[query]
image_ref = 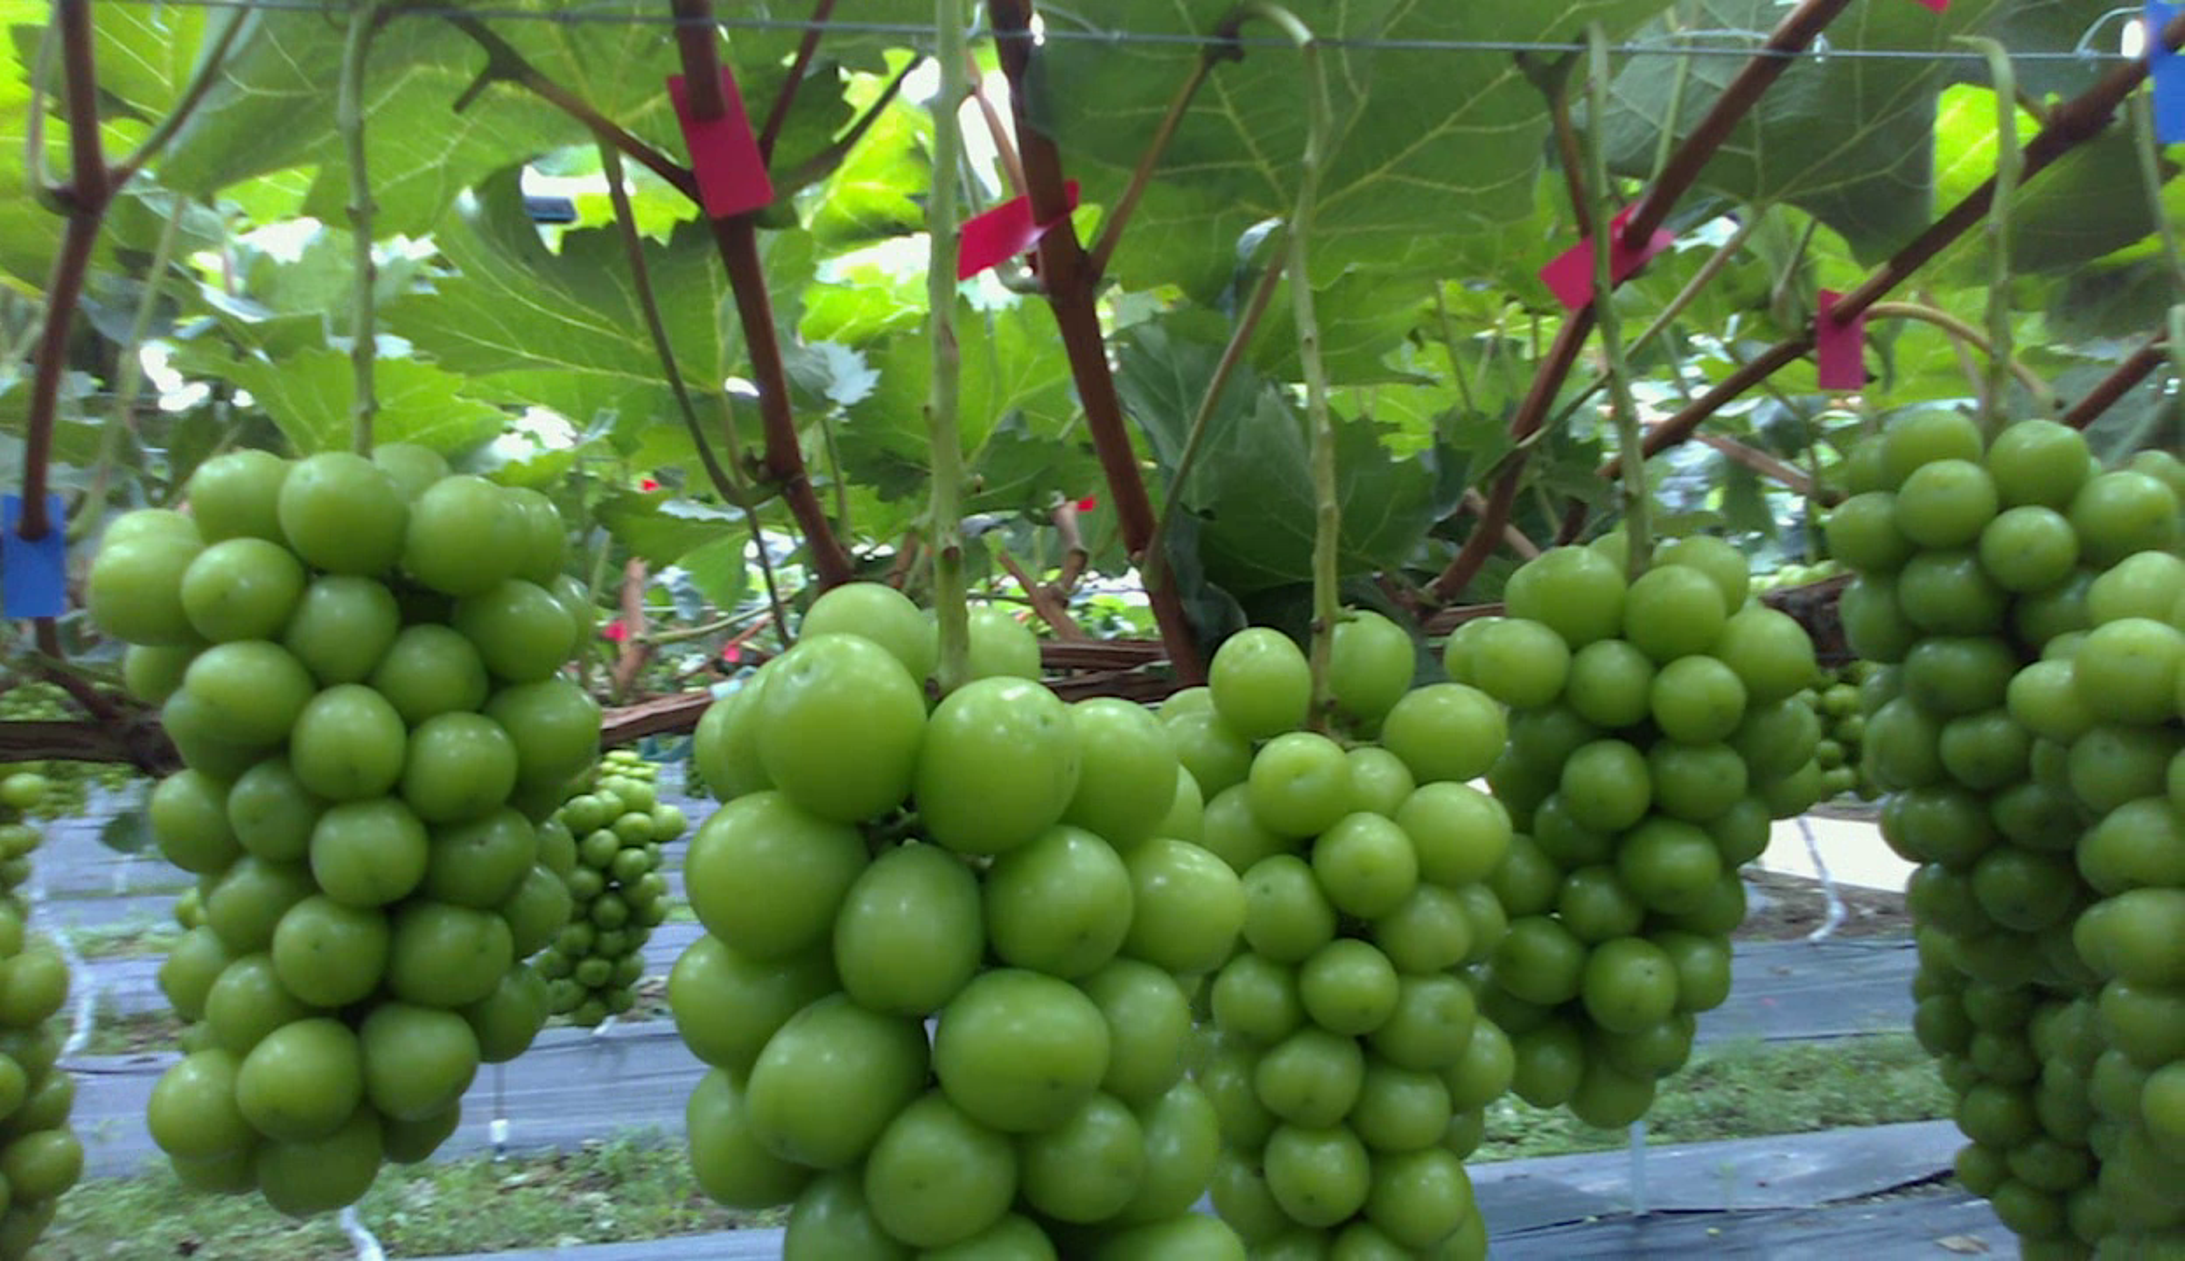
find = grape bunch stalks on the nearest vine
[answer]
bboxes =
[909,2,984,706]
[1977,44,2022,457]
[333,4,382,455]
[1579,28,1655,585]
[1241,4,1355,734]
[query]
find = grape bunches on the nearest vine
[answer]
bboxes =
[667,581,1247,1257]
[1821,406,2183,1233]
[84,441,602,1217]
[1441,532,1824,1130]
[1159,609,1516,1259]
